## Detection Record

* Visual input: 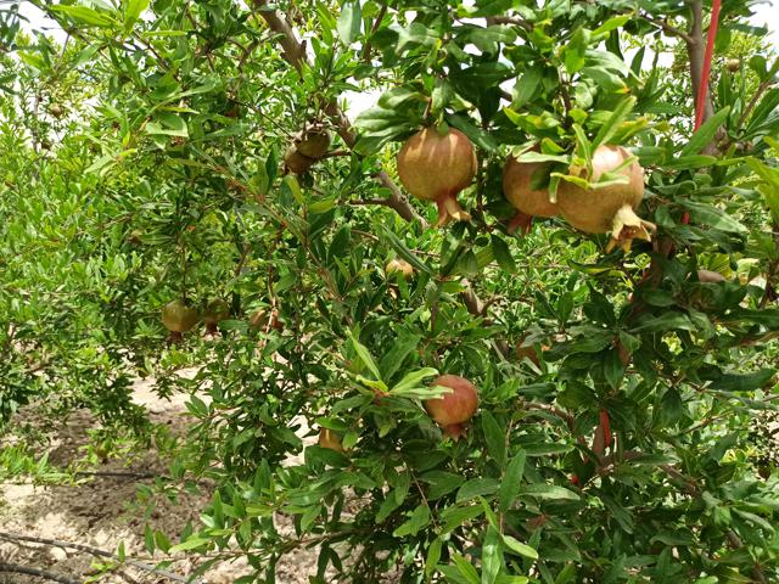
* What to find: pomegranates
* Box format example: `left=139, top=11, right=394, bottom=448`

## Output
left=504, top=157, right=561, bottom=237
left=319, top=427, right=348, bottom=454
left=250, top=309, right=284, bottom=333
left=556, top=144, right=657, bottom=254
left=292, top=125, right=330, bottom=158
left=285, top=146, right=315, bottom=174
left=421, top=374, right=477, bottom=442
left=203, top=298, right=230, bottom=338
left=398, top=127, right=477, bottom=228
left=385, top=258, right=417, bottom=281
left=163, top=299, right=198, bottom=343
